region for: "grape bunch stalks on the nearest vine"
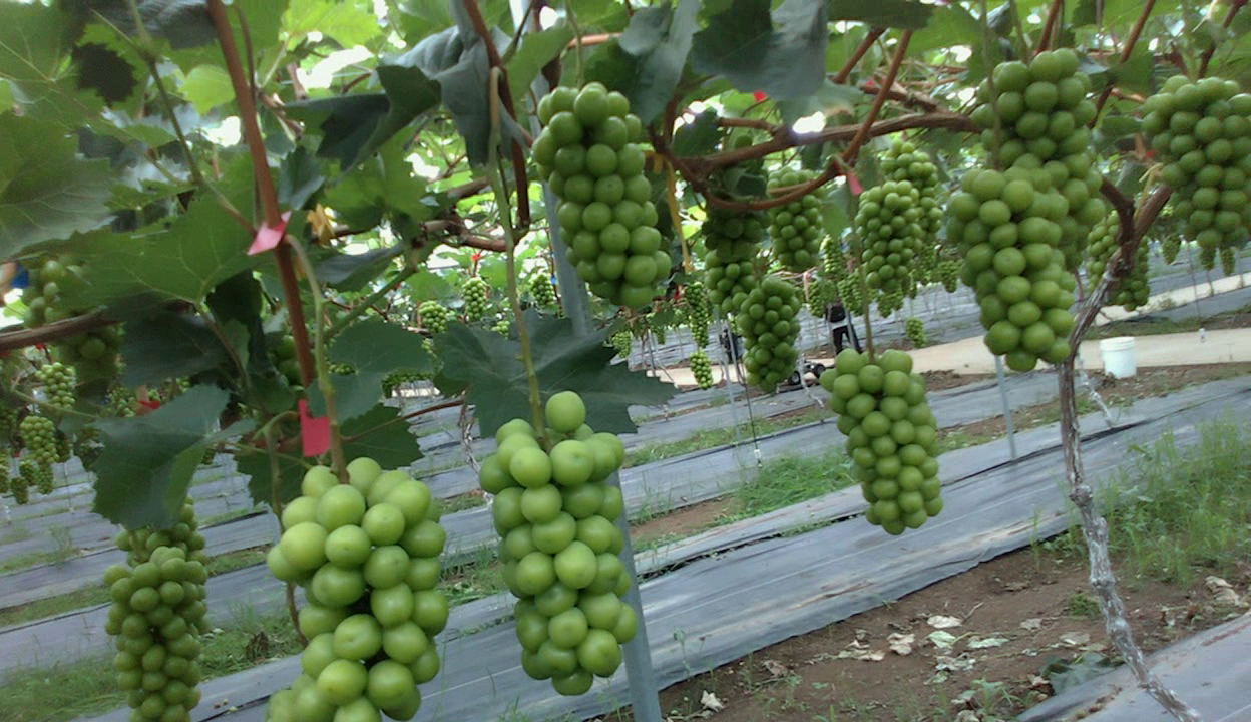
[833,156,875,364]
[1180,0,1199,84]
[485,70,551,447]
[1009,0,1033,59]
[982,0,999,168]
[289,239,348,483]
[565,0,584,88]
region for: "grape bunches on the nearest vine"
[476,392,640,696]
[1143,76,1250,250]
[946,166,1077,374]
[269,457,448,721]
[819,349,943,535]
[970,47,1106,269]
[530,81,671,309]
